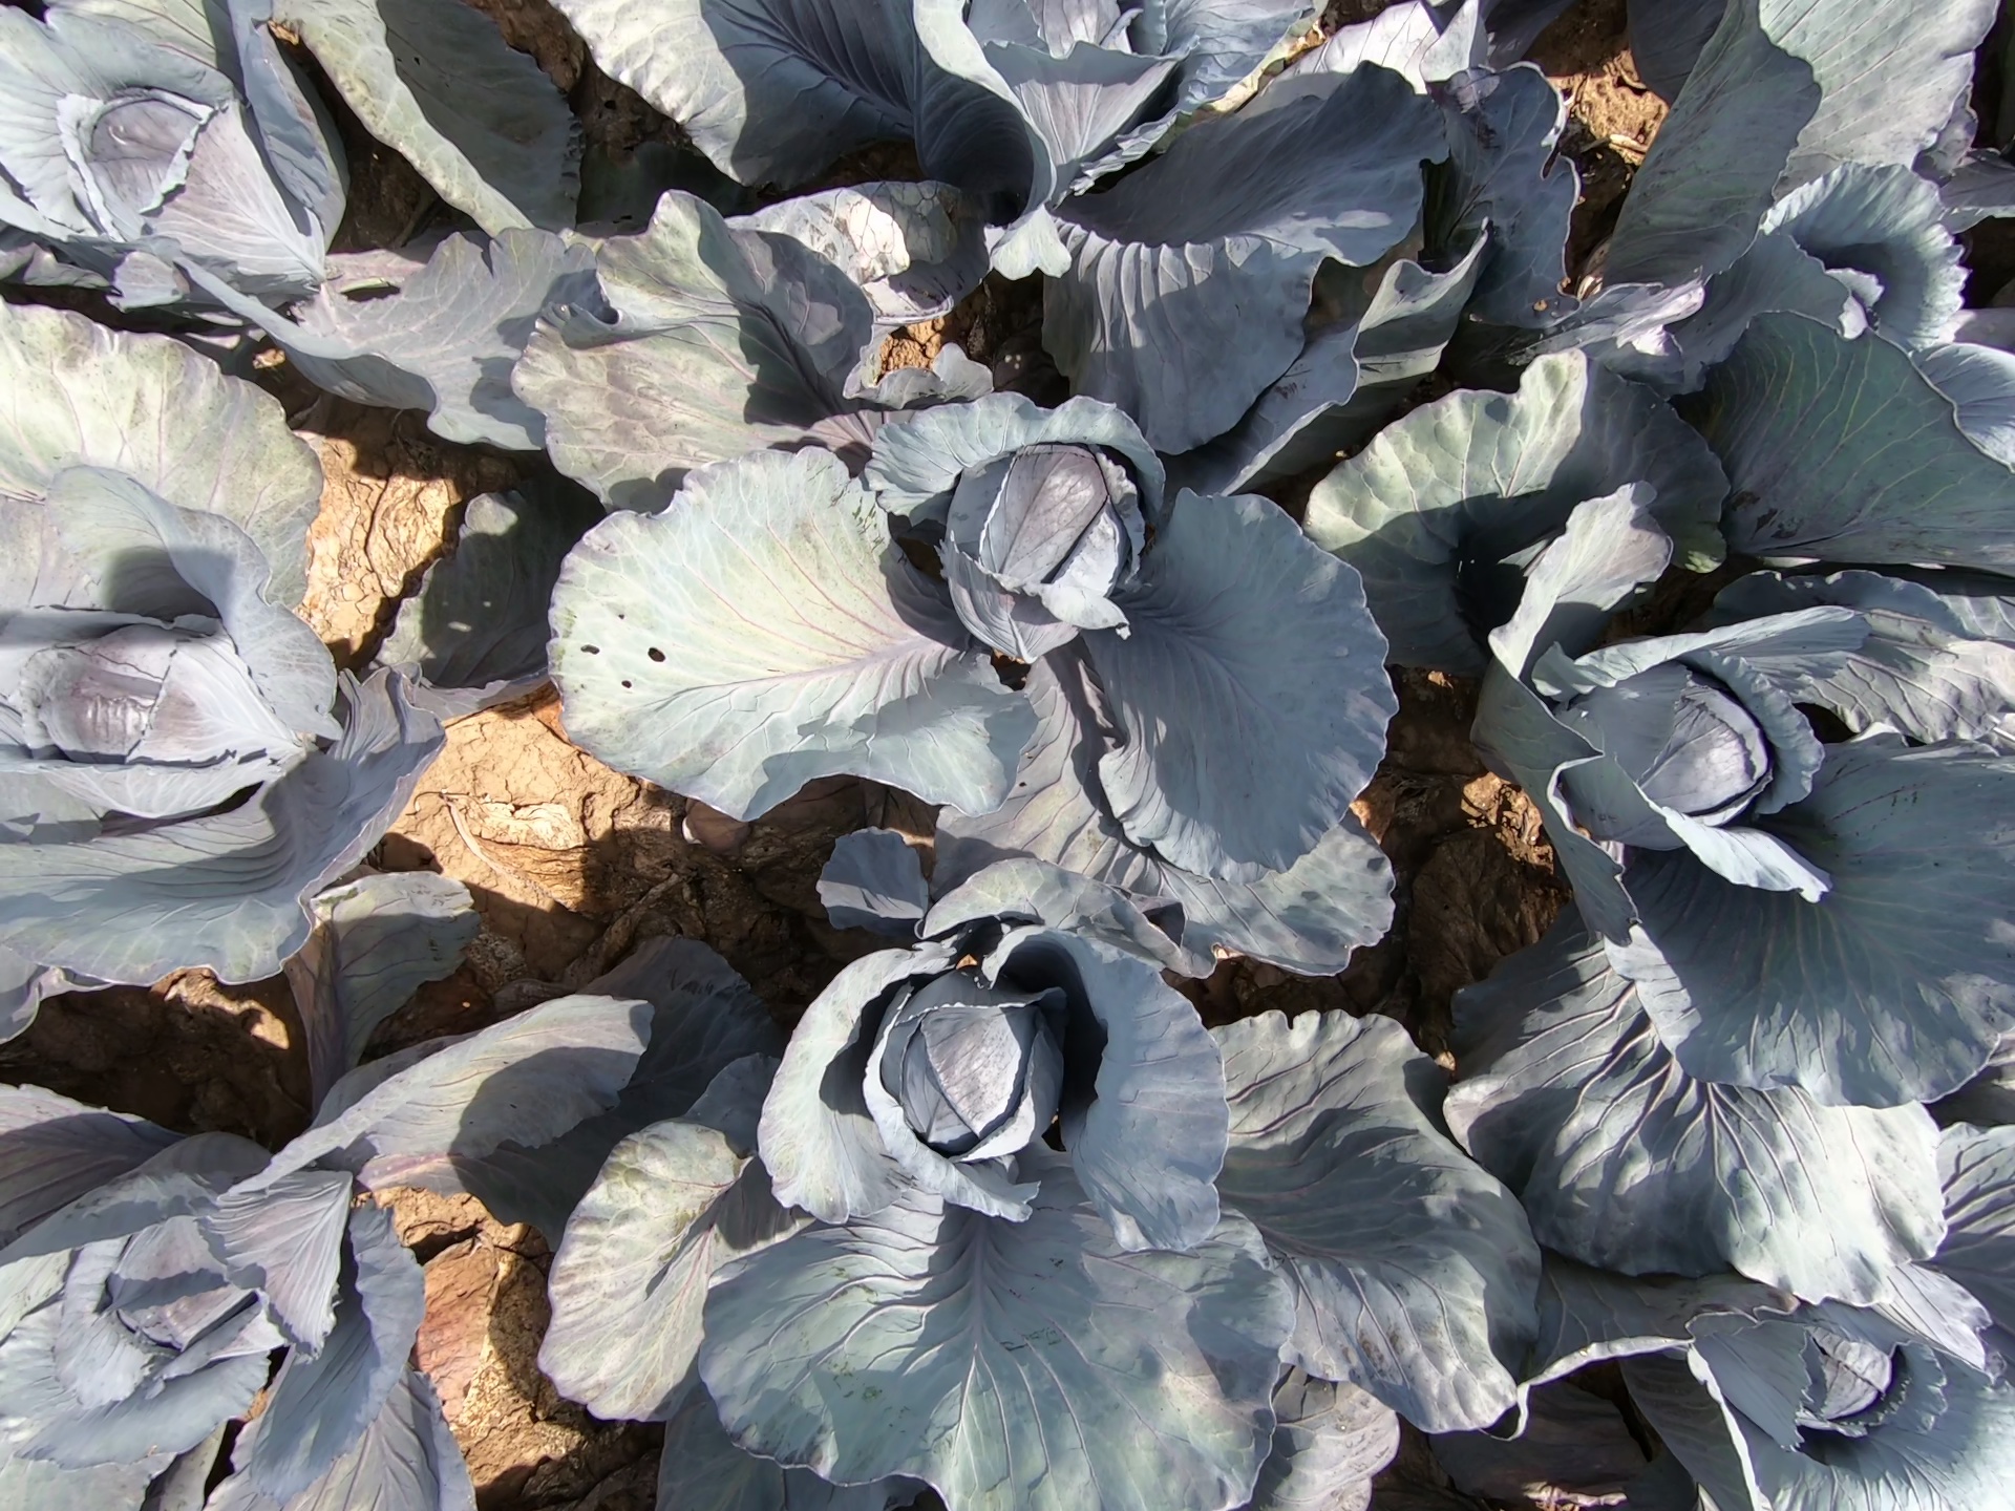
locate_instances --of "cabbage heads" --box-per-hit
[108,1178,321,1360]
[75,89,270,257]
[1589,659,1773,832]
[877,984,1065,1150]
[1711,283,1872,434]
[959,2,1139,163]
[45,619,256,782]
[1747,1290,1896,1418]
[947,439,1132,643]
